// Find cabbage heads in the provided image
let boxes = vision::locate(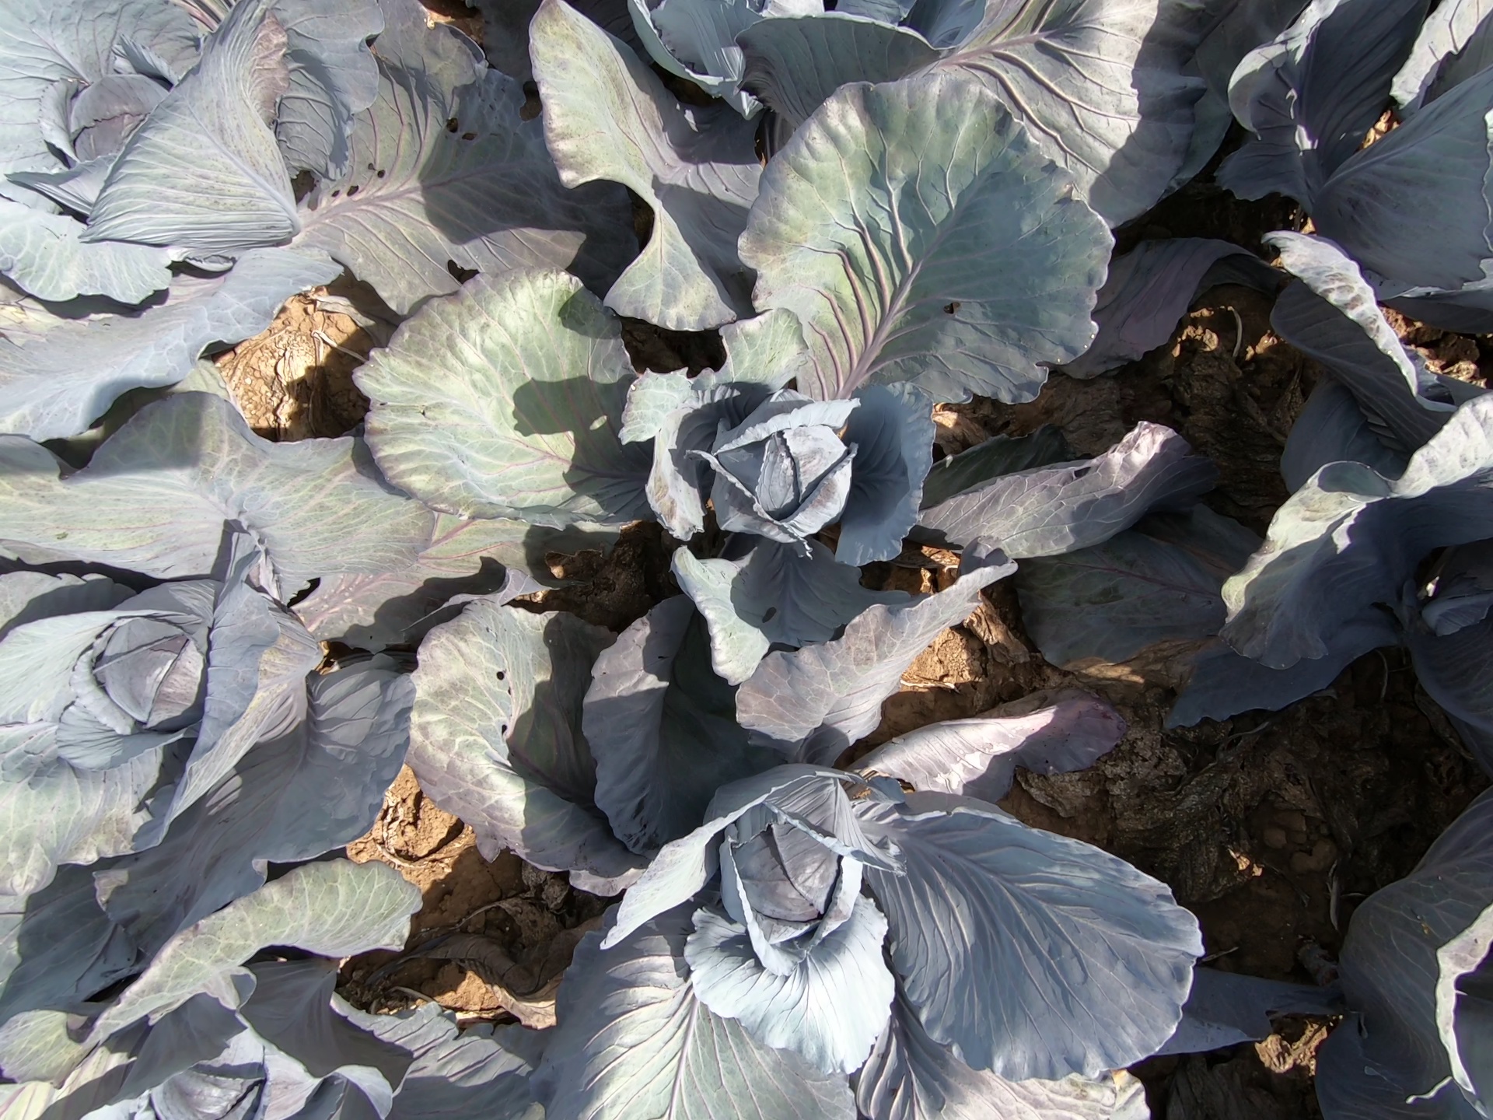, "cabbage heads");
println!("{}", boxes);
[67,69,201,215]
[95,586,281,733]
[671,0,827,86]
[726,787,855,932]
[721,399,851,532]
[142,970,328,1118]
